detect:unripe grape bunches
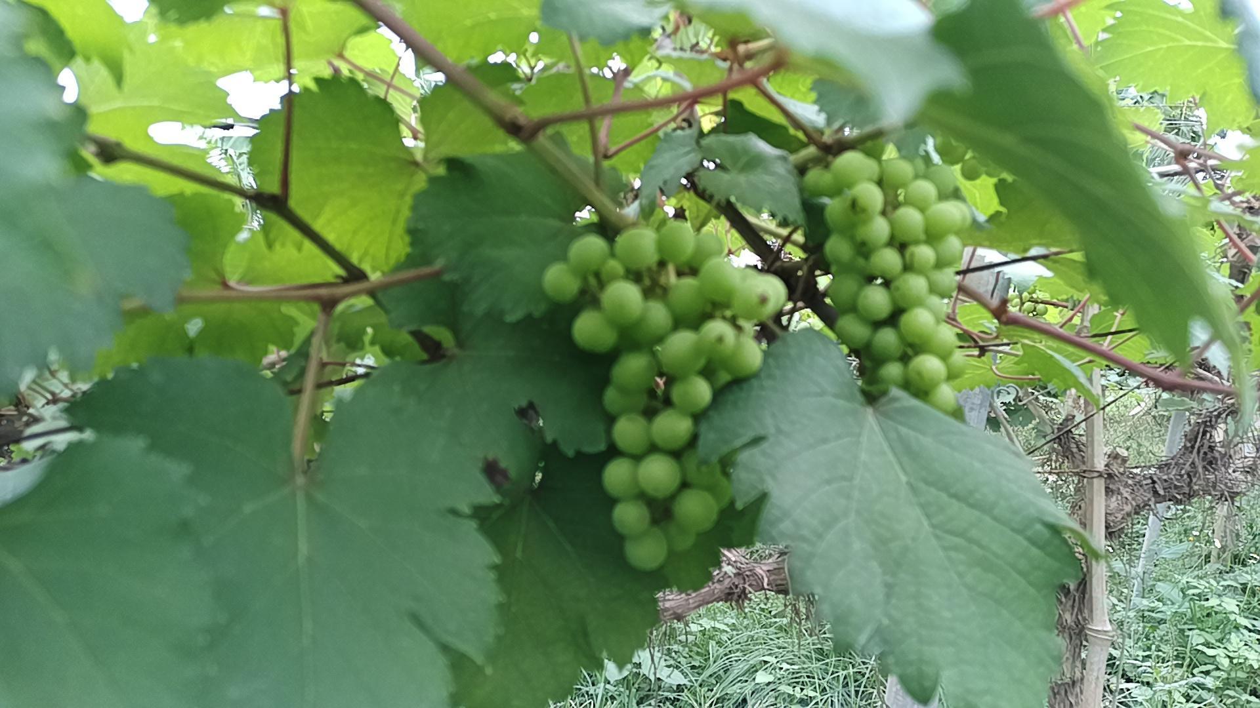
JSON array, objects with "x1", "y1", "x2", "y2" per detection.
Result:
[
  {"x1": 543, "y1": 220, "x2": 786, "y2": 571},
  {"x1": 803, "y1": 152, "x2": 973, "y2": 414}
]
